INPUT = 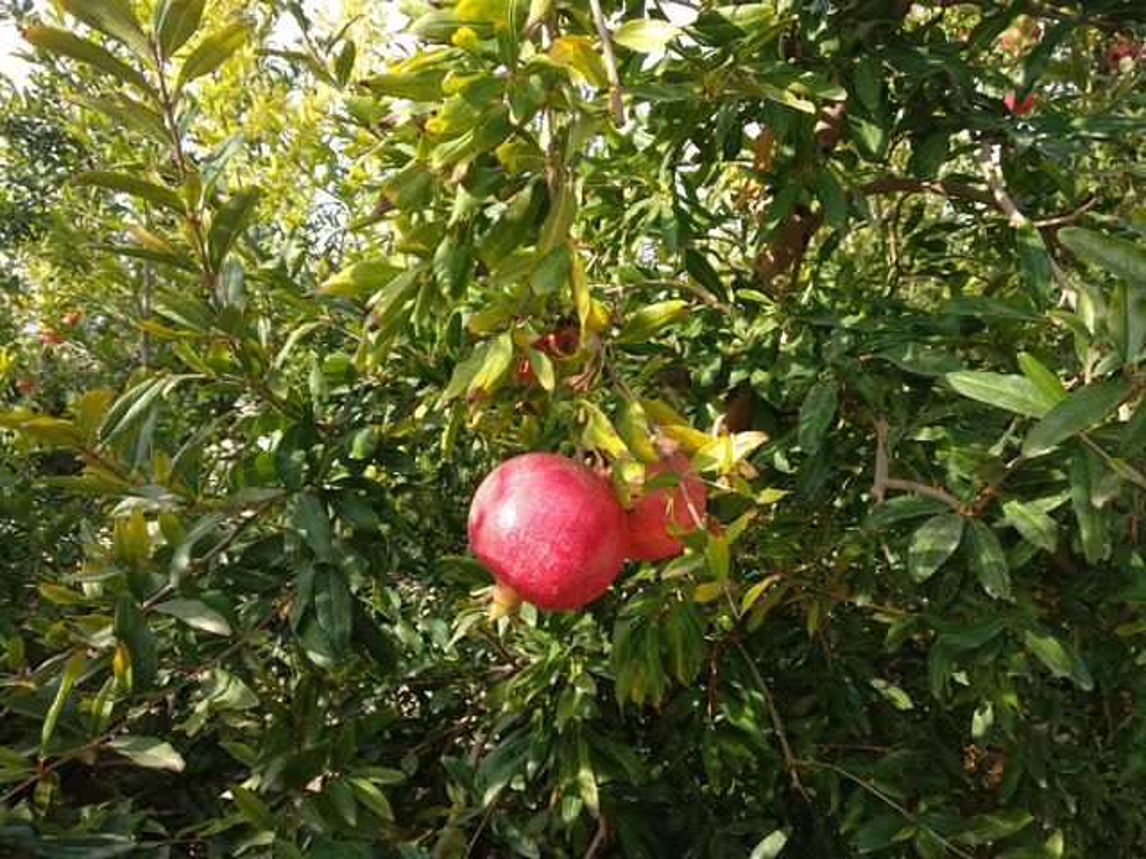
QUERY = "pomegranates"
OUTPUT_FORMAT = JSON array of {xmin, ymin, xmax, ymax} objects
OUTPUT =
[
  {"xmin": 625, "ymin": 451, "xmax": 707, "ymax": 564},
  {"xmin": 466, "ymin": 453, "xmax": 630, "ymax": 637}
]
